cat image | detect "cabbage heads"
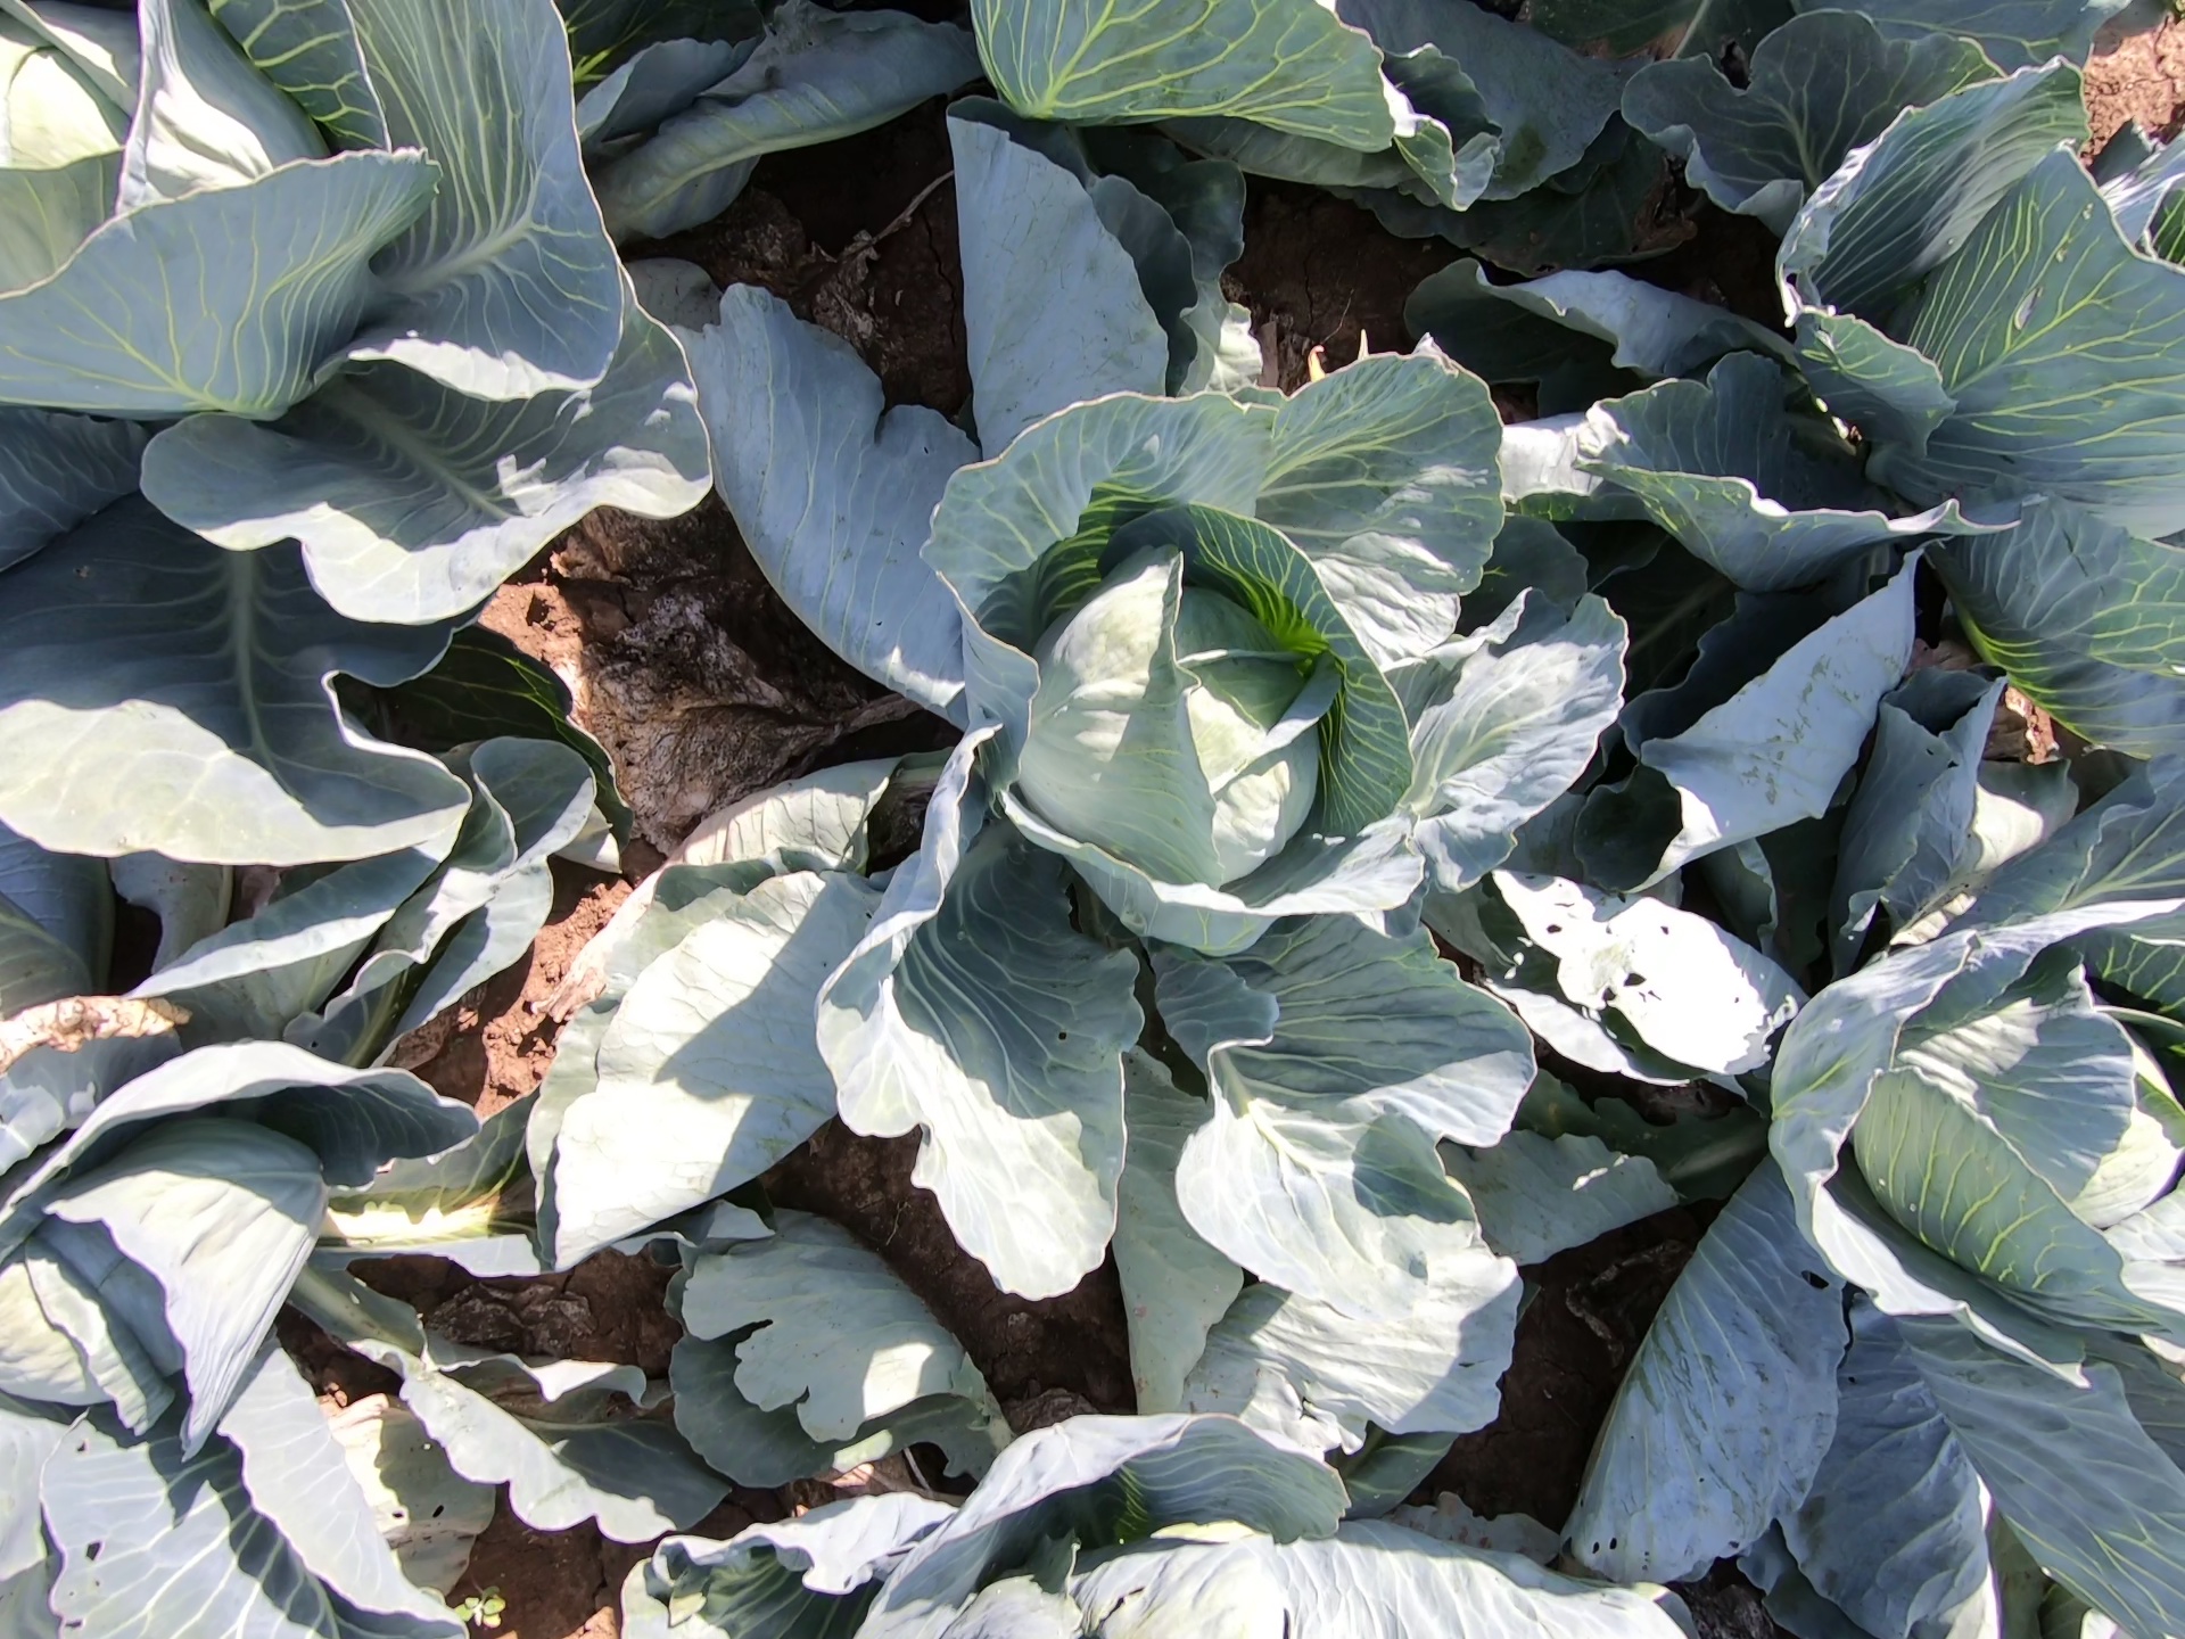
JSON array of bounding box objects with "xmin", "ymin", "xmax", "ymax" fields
[
  {"xmin": 1879, "ymin": 981, "xmax": 2183, "ymax": 1224},
  {"xmin": 1024, "ymin": 587, "xmax": 1328, "ymax": 896},
  {"xmin": 5, "ymin": 0, "xmax": 332, "ymax": 371},
  {"xmin": 5, "ymin": 1125, "xmax": 296, "ymax": 1401}
]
